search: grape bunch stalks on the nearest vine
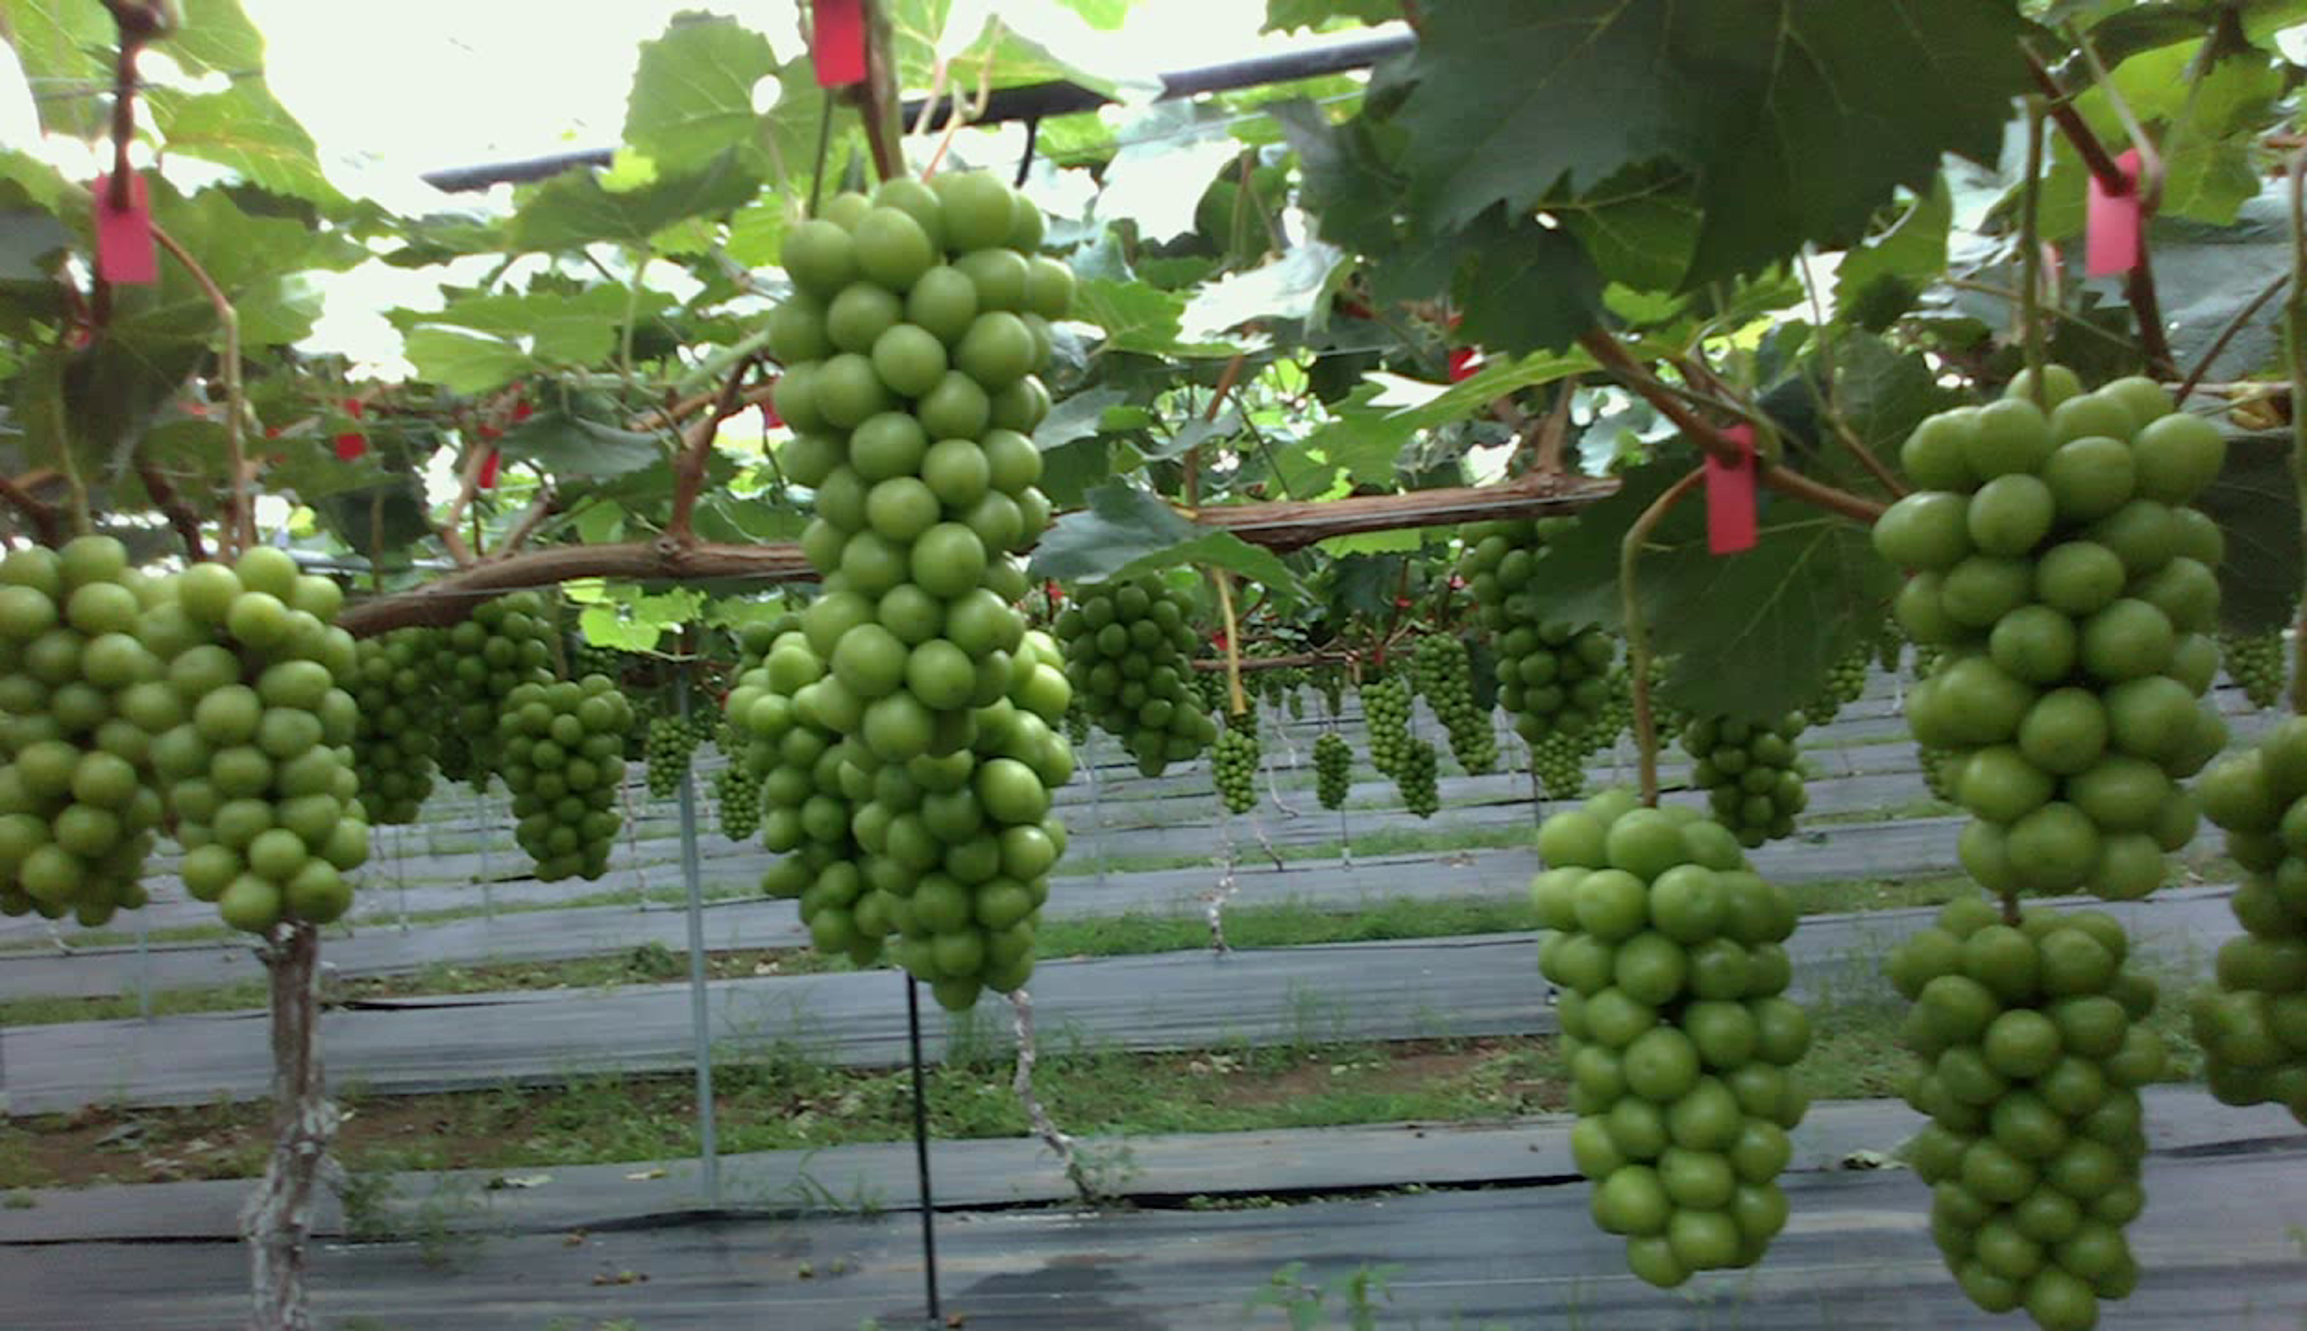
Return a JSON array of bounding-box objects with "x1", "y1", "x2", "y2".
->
[
  {"x1": 2006, "y1": 898, "x2": 2020, "y2": 924},
  {"x1": 2019, "y1": 105, "x2": 2045, "y2": 407},
  {"x1": 155, "y1": 229, "x2": 257, "y2": 542},
  {"x1": 865, "y1": 2, "x2": 906, "y2": 176},
  {"x1": 1619, "y1": 468, "x2": 1703, "y2": 800},
  {"x1": 46, "y1": 325, "x2": 94, "y2": 531}
]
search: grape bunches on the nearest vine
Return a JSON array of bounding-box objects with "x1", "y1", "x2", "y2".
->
[
  {"x1": 771, "y1": 166, "x2": 1074, "y2": 773},
  {"x1": 0, "y1": 534, "x2": 165, "y2": 926},
  {"x1": 2181, "y1": 714, "x2": 2305, "y2": 1115},
  {"x1": 841, "y1": 630, "x2": 1074, "y2": 1011},
  {"x1": 1887, "y1": 893, "x2": 2161, "y2": 1327},
  {"x1": 126, "y1": 545, "x2": 372, "y2": 930},
  {"x1": 730, "y1": 632, "x2": 887, "y2": 967},
  {"x1": 1869, "y1": 362, "x2": 2228, "y2": 902},
  {"x1": 1536, "y1": 791, "x2": 1812, "y2": 1292}
]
